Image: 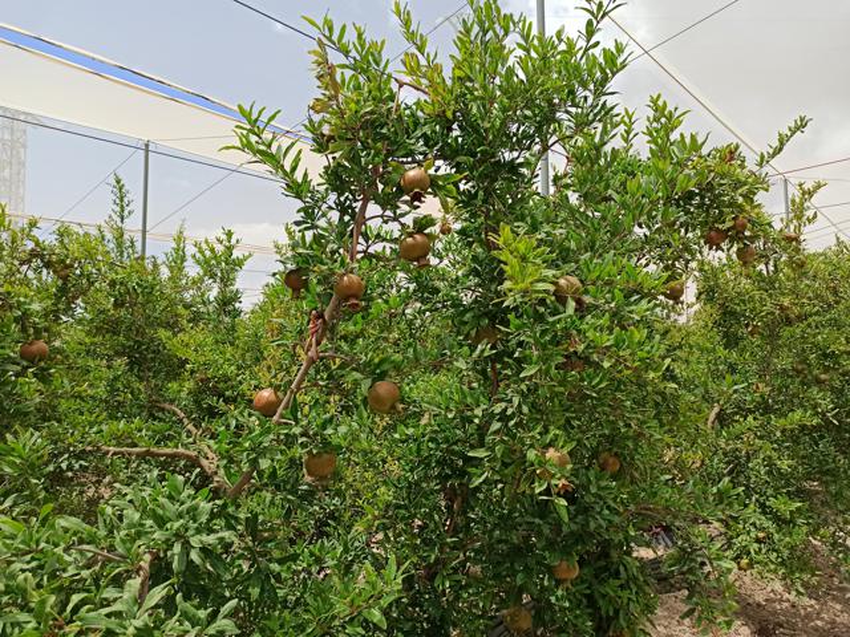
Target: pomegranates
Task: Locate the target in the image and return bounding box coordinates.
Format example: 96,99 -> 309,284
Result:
333,273 -> 365,313
705,228 -> 728,252
598,450 -> 620,474
537,446 -> 575,495
19,340 -> 49,362
368,380 -> 409,415
252,388 -> 286,418
398,234 -> 430,269
736,244 -> 756,267
283,268 -> 307,299
440,223 -> 453,235
400,169 -> 432,204
732,219 -> 746,236
304,453 -> 335,479
556,276 -> 583,295
664,284 -> 684,305
505,606 -> 533,633
551,560 -> 579,585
